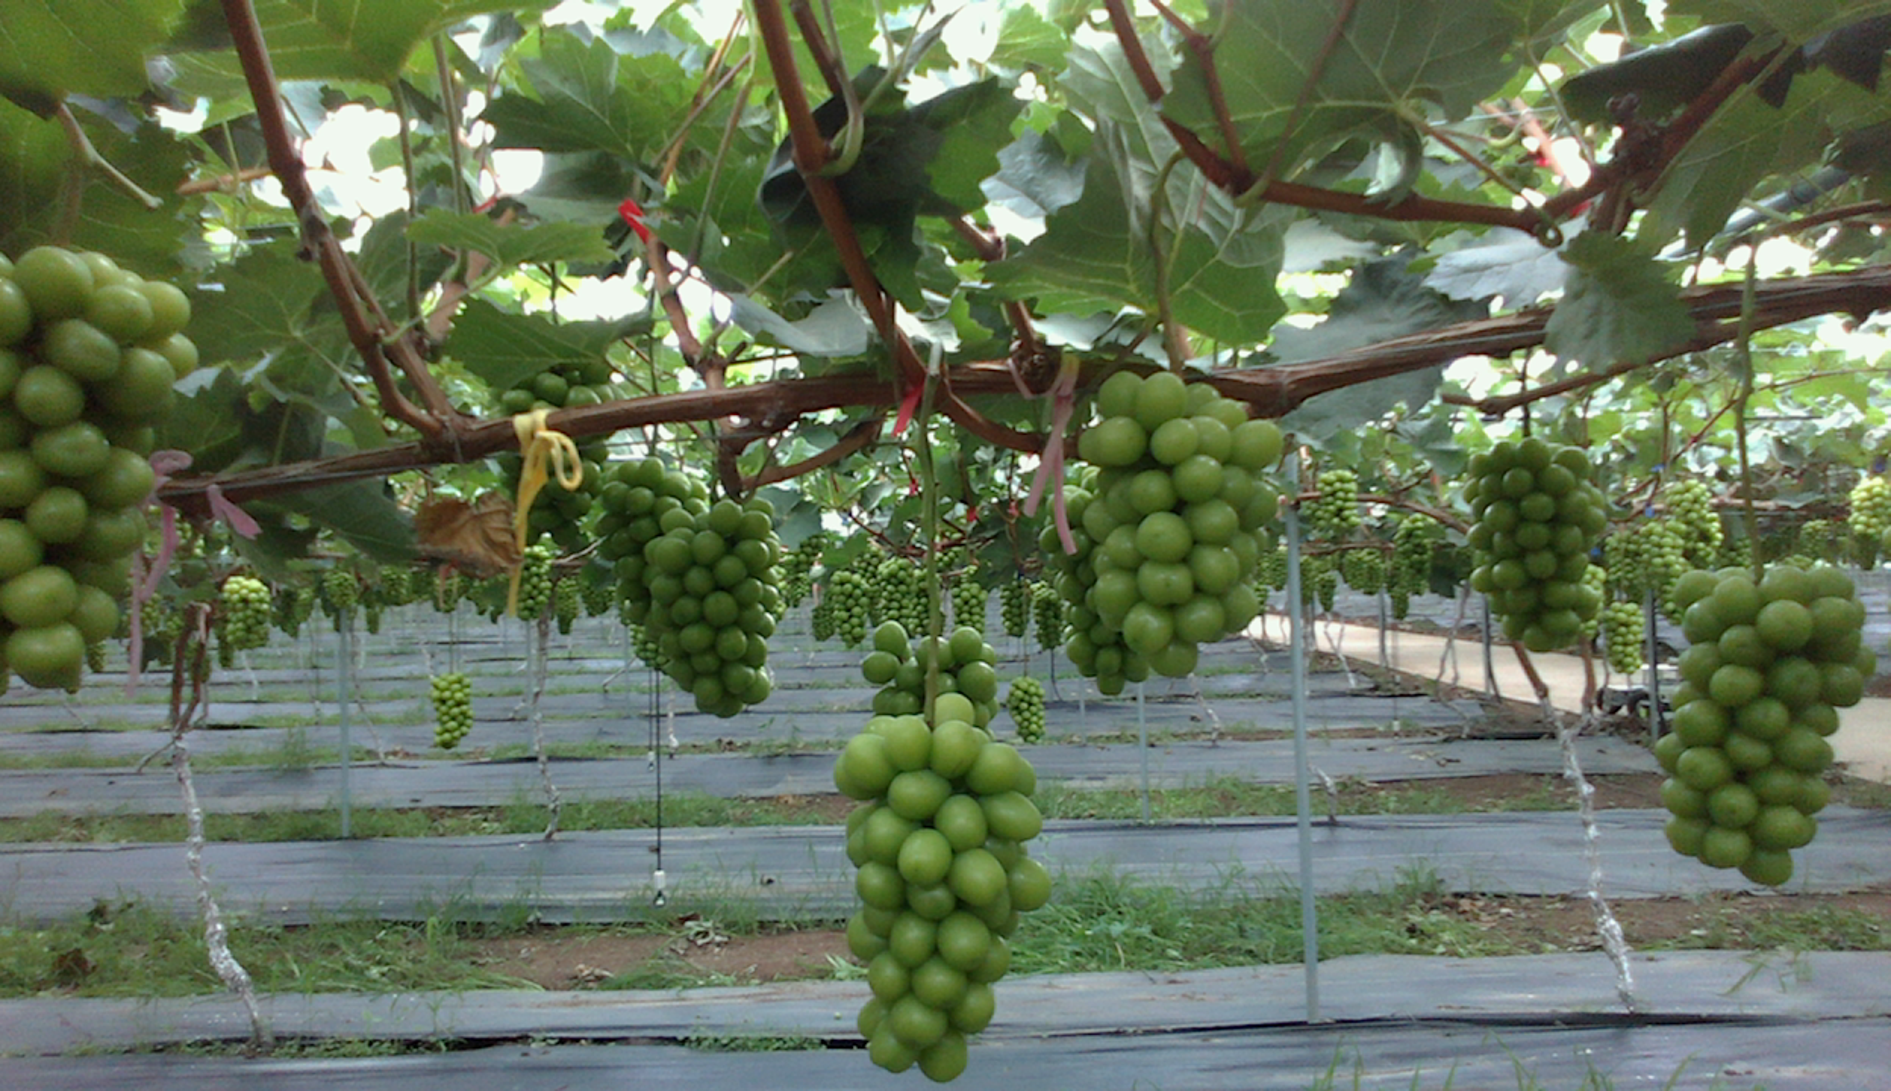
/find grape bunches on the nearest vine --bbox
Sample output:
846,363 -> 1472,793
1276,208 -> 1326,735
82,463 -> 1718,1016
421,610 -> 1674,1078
1653,564 -> 1874,883
1074,370 -> 1280,677
827,691 -> 1052,1083
0,249 -> 197,689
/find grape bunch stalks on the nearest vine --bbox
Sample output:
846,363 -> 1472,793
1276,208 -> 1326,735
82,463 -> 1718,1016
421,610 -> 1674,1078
52,153 -> 94,244
1149,150 -> 1182,373
909,338 -> 939,727
1736,244 -> 1764,580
